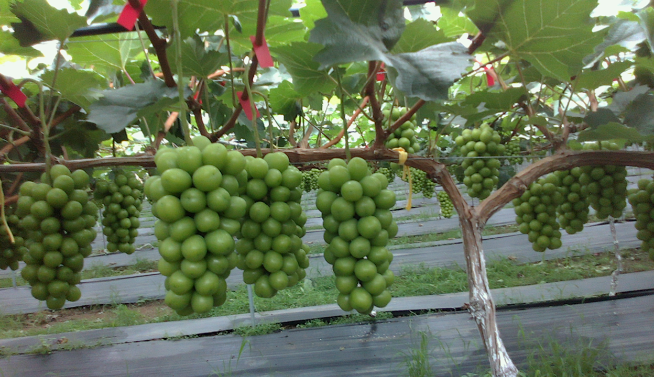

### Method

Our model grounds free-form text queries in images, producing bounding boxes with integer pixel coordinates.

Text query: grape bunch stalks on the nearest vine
[171,0,194,146]
[243,56,263,158]
[18,78,52,186]
[334,68,350,162]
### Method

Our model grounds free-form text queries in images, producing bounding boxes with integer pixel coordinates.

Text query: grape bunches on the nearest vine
[144,136,249,317]
[234,152,304,298]
[316,157,398,314]
[16,164,97,311]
